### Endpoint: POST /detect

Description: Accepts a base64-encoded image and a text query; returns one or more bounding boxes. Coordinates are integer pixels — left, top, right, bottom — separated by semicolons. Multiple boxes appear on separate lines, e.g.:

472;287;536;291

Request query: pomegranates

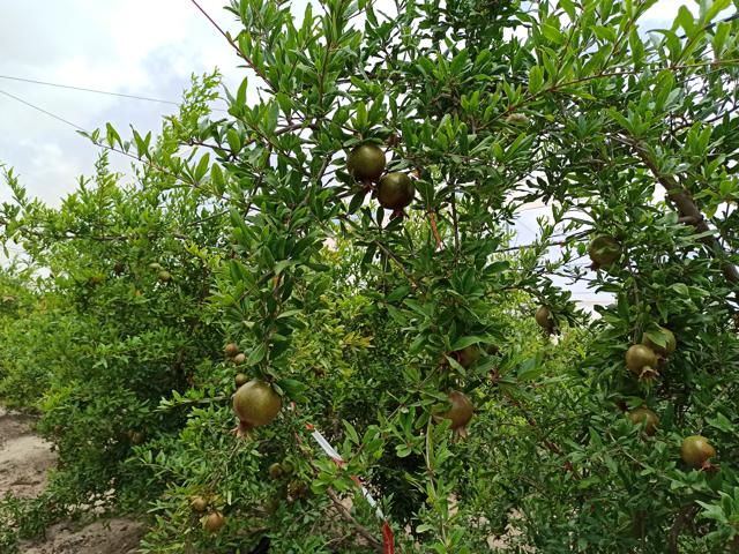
375;172;417;222
624;343;662;381
439;391;475;444
233;379;282;436
234;373;249;387
584;234;621;274
679;434;721;474
641;335;678;361
535;304;562;337
346;143;387;185
233;353;246;366
206;512;224;531
267;462;285;479
224;343;239;357
191;496;208;512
